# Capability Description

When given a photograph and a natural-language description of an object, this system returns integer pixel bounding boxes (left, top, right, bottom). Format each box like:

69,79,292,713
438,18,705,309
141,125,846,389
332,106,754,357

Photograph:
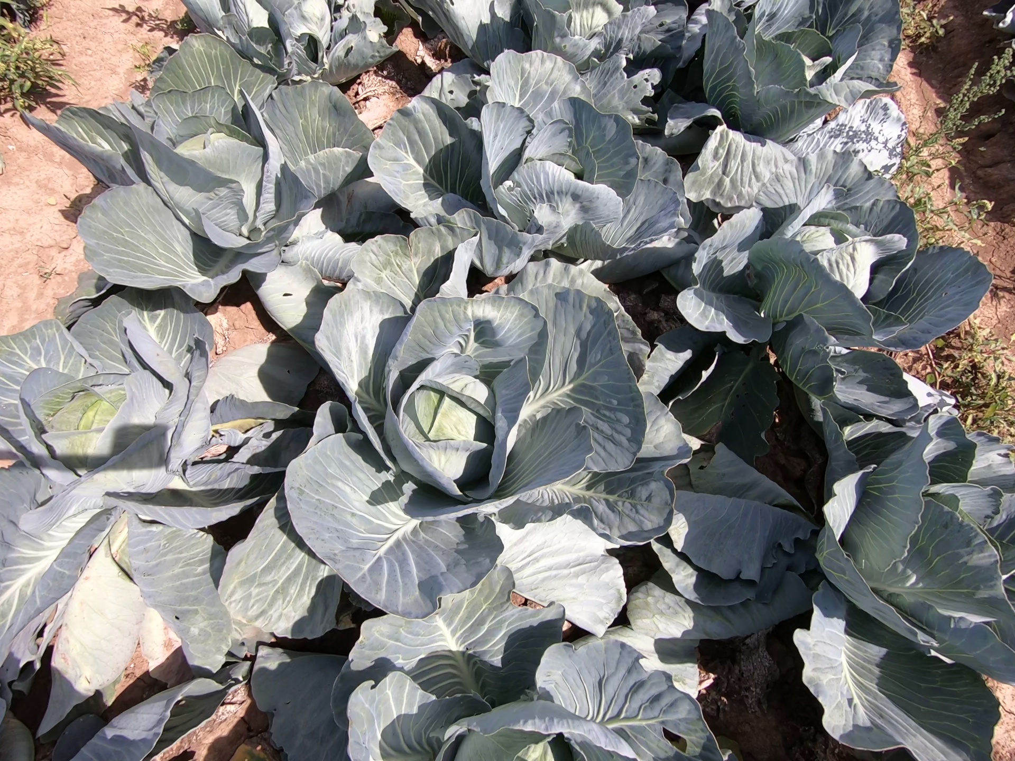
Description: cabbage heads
514,165,583,239
779,221,869,307
54,386,185,495
454,711,573,760
394,374,502,485
750,49,825,115
164,132,276,231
